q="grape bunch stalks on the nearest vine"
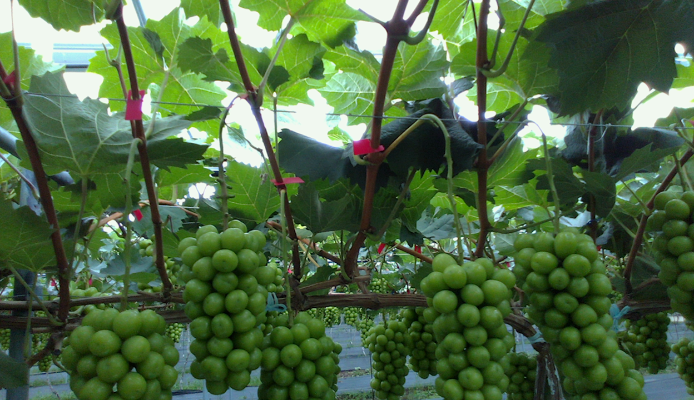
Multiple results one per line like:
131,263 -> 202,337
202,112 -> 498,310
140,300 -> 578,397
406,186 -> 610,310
120,139 -> 137,311
491,119 -> 561,235
382,114 -> 463,264
211,96 -> 236,231
674,152 -> 690,191
280,193 -> 294,328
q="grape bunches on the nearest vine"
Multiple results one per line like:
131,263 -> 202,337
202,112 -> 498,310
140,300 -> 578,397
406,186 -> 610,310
61,308 -> 179,399
648,190 -> 693,322
258,311 -> 337,399
420,253 -> 515,399
177,219 -> 275,394
513,231 -> 630,389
